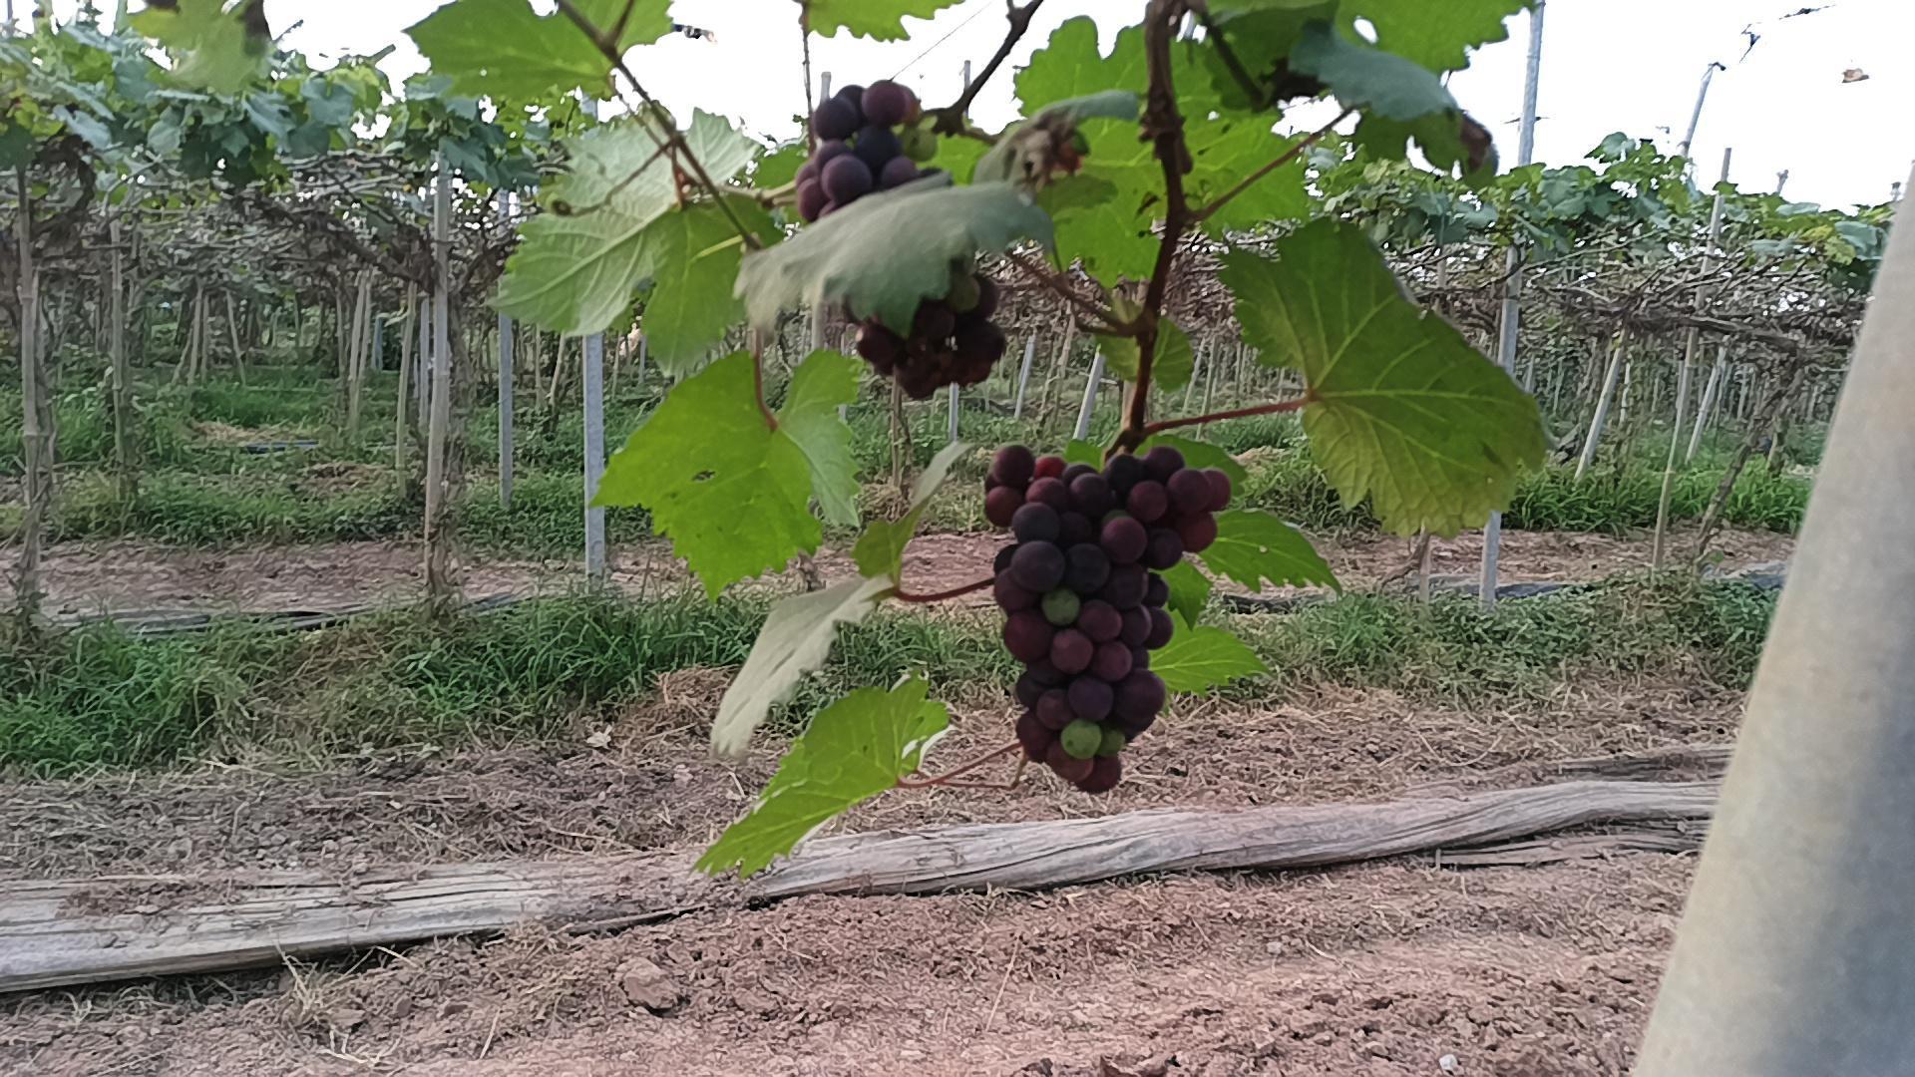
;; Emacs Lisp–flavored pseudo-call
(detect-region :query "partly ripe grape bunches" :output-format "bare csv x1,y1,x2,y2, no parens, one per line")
793,79,1008,397
984,445,1230,792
